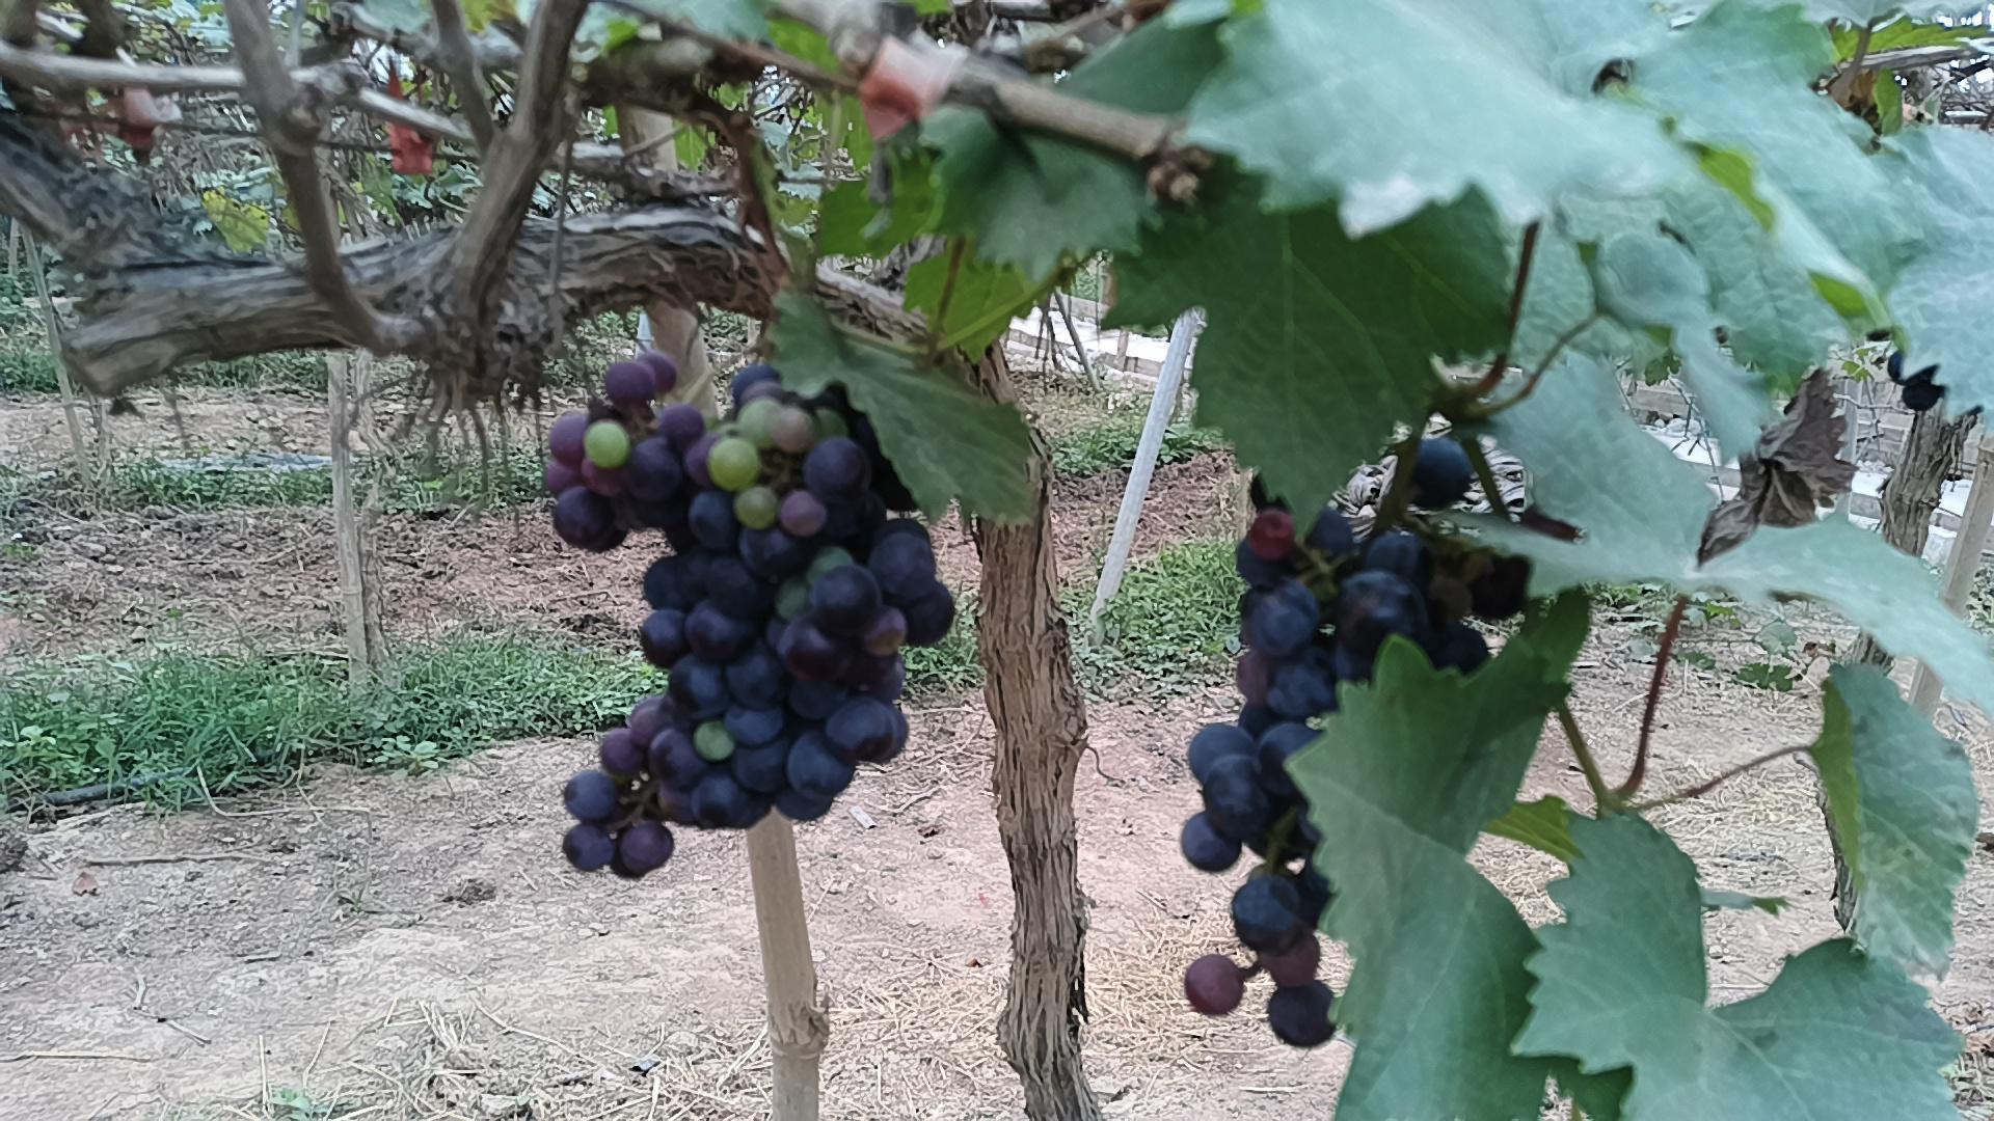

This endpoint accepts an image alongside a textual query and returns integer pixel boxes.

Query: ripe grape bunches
[1869,333,1946,419]
[1181,435,1488,1046]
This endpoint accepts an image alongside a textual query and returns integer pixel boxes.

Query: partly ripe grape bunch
[545,351,953,874]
